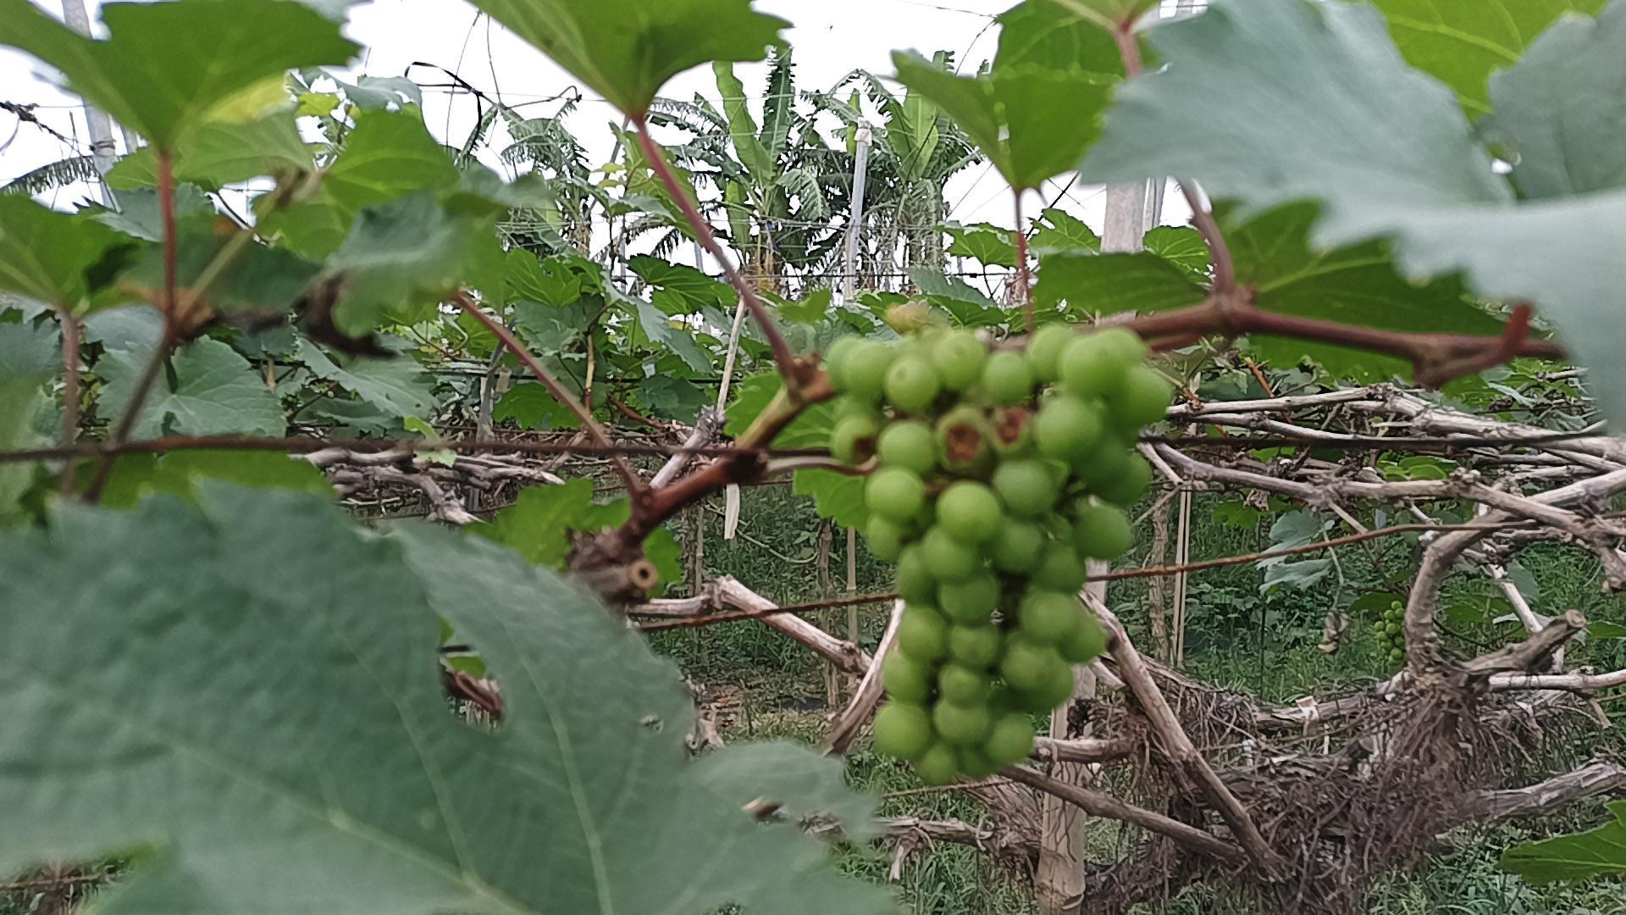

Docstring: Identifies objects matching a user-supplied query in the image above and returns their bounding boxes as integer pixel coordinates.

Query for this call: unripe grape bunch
[829,308,1169,785]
